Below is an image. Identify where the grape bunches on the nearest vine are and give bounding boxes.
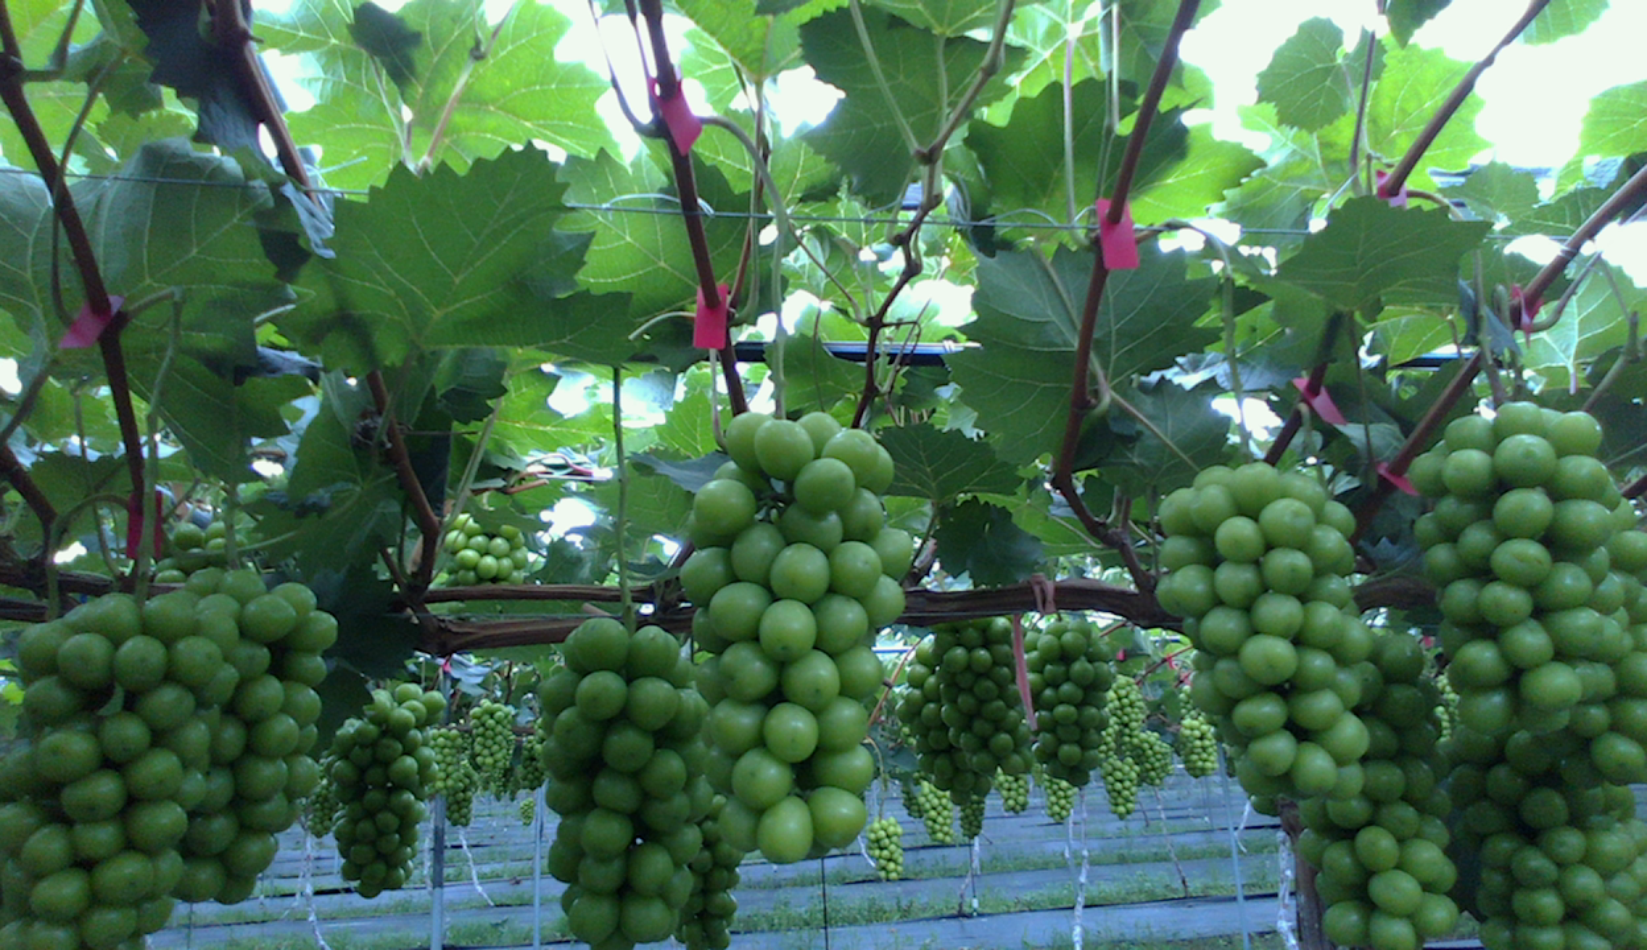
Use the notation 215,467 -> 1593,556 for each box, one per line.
178,566 -> 338,906
536,617 -> 714,949
1155,460 -> 1376,804
680,412 -> 913,864
1450,724 -> 1646,949
0,592 -> 238,949
1408,402 -> 1626,736
1295,631 -> 1457,949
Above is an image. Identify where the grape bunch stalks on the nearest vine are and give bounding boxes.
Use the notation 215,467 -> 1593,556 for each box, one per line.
124,285 -> 183,602
614,368 -> 633,632
702,116 -> 788,416
1135,220 -> 1252,459
1407,190 -> 1503,404
223,445 -> 243,565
